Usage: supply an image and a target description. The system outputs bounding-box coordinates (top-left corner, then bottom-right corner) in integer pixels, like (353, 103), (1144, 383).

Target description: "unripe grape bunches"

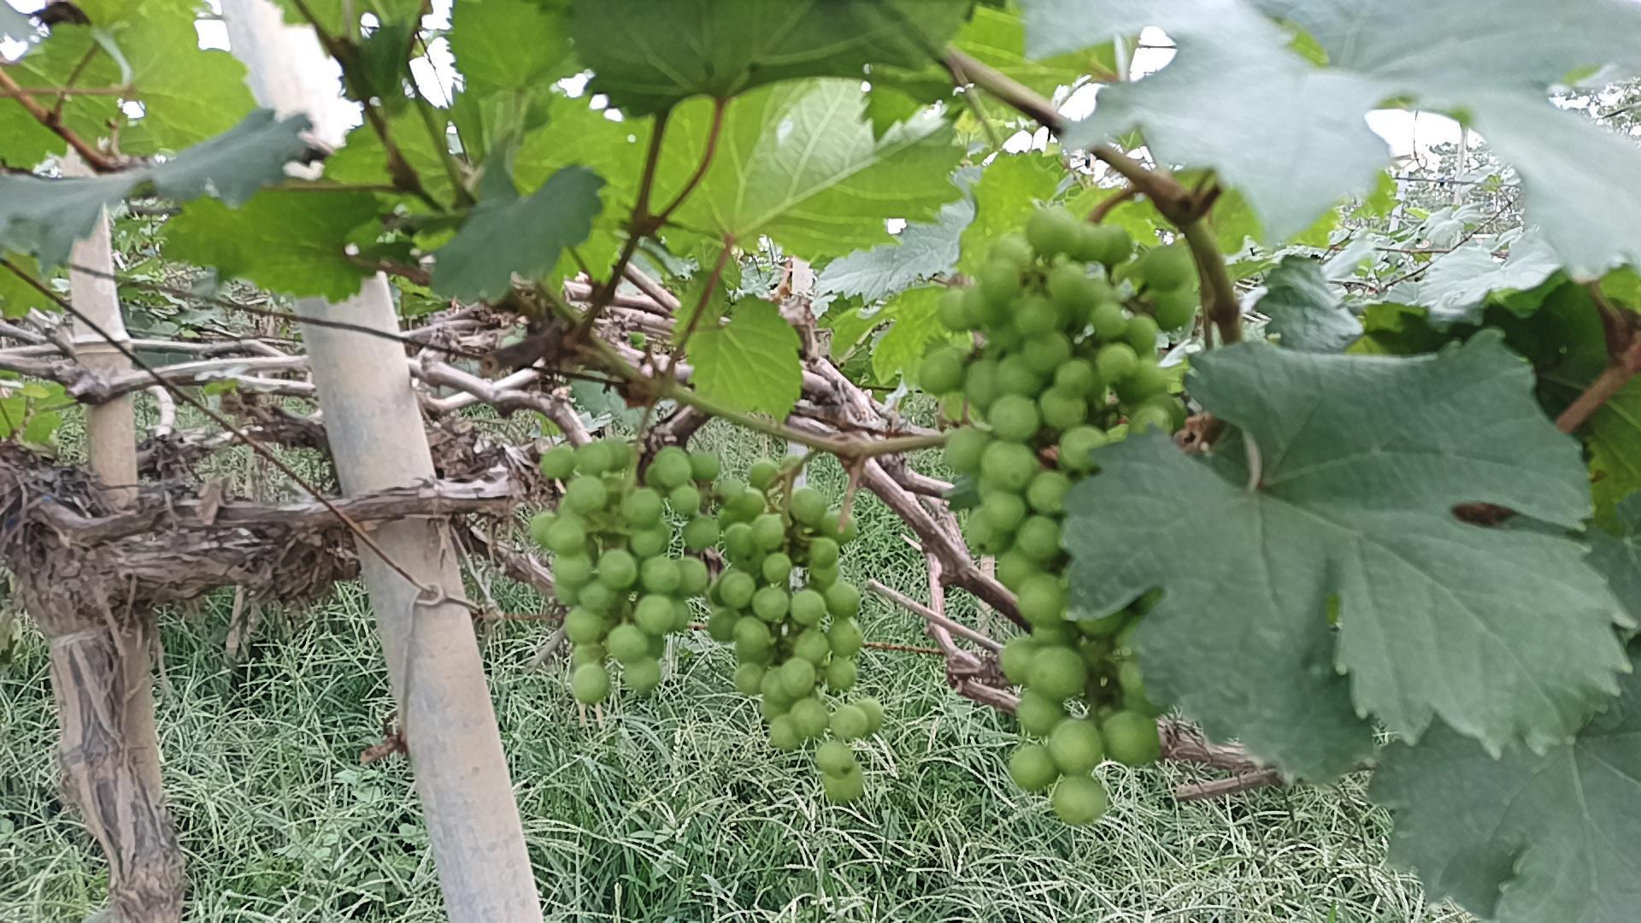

(530, 439), (722, 702)
(708, 460), (884, 802)
(920, 209), (1196, 824)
